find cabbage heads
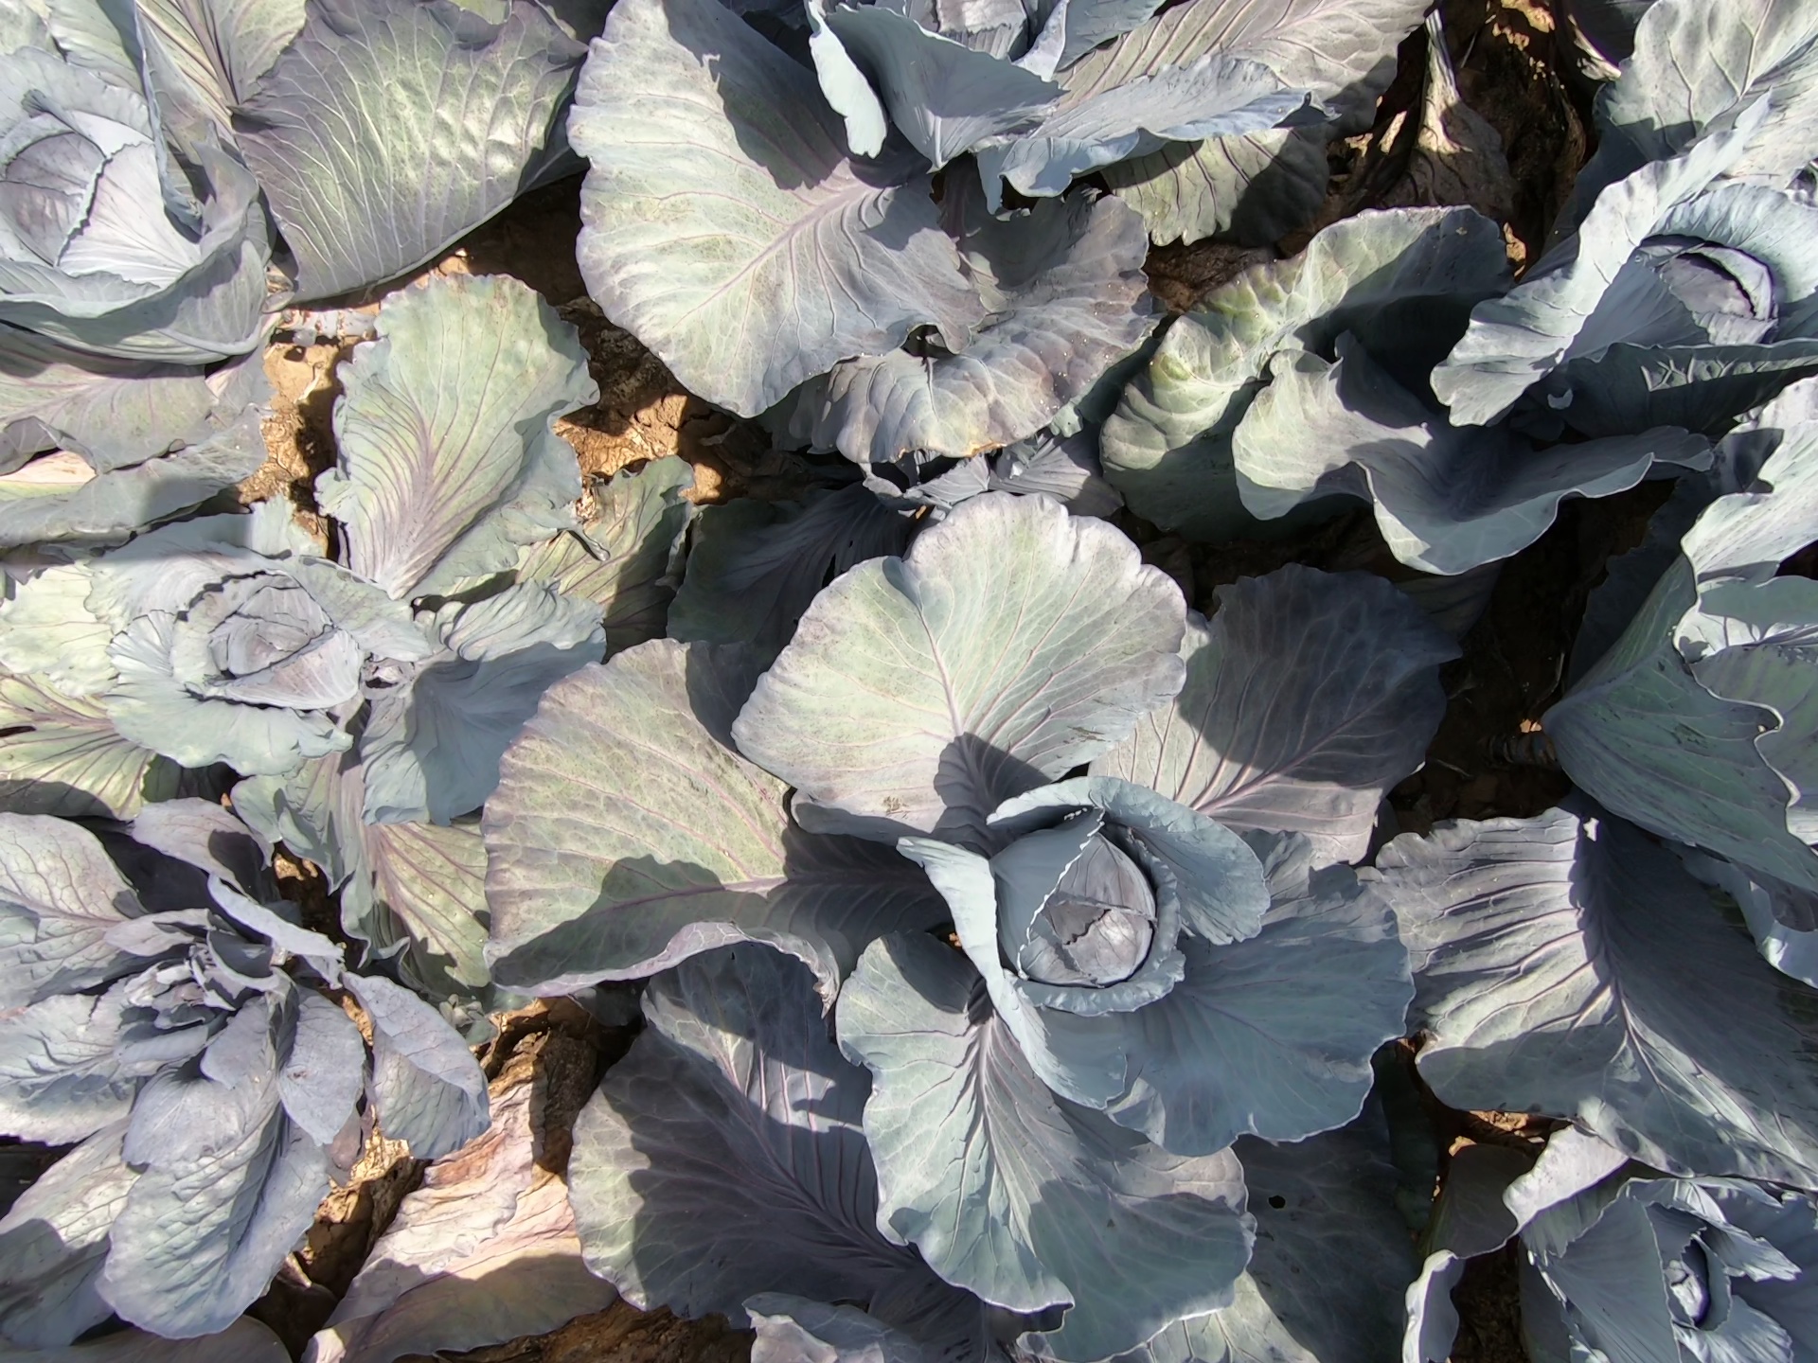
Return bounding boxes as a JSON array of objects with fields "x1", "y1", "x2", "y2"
[
  {"x1": 1, "y1": 108, "x2": 200, "y2": 302},
  {"x1": 1541, "y1": 1185, "x2": 1717, "y2": 1347},
  {"x1": 223, "y1": 585, "x2": 364, "y2": 700},
  {"x1": 1576, "y1": 237, "x2": 1773, "y2": 398},
  {"x1": 868, "y1": 0, "x2": 1031, "y2": 132},
  {"x1": 1005, "y1": 829, "x2": 1162, "y2": 992}
]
